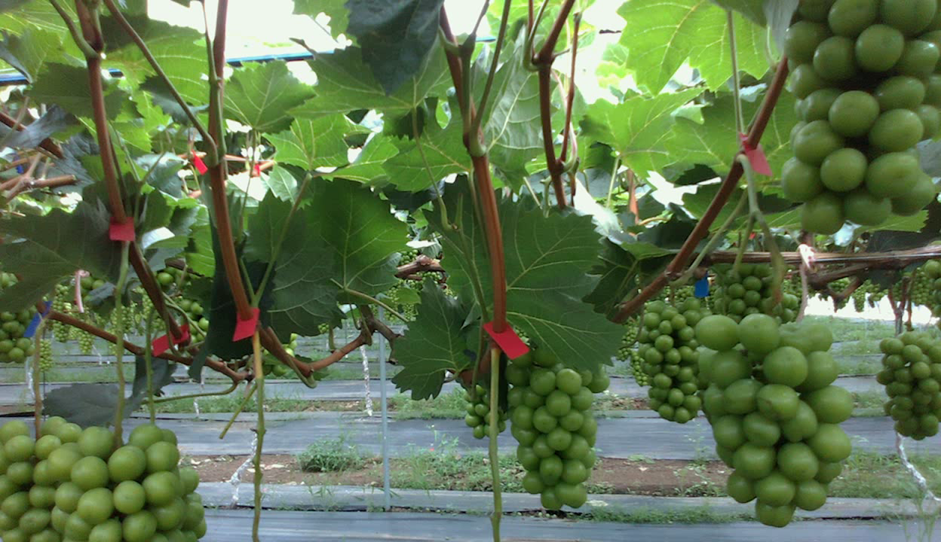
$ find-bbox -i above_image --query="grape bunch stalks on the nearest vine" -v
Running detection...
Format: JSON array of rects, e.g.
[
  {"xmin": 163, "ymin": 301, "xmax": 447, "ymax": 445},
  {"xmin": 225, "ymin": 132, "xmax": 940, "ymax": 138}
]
[
  {"xmin": 490, "ymin": 349, "xmax": 502, "ymax": 541},
  {"xmin": 112, "ymin": 241, "xmax": 130, "ymax": 450},
  {"xmin": 252, "ymin": 331, "xmax": 267, "ymax": 488},
  {"xmin": 738, "ymin": 153, "xmax": 787, "ymax": 317},
  {"xmin": 32, "ymin": 315, "xmax": 47, "ymax": 441}
]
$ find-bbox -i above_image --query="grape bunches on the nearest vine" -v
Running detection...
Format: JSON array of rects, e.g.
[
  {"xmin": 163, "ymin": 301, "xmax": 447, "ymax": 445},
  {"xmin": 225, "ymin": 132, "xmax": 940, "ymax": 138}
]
[
  {"xmin": 507, "ymin": 349, "xmax": 609, "ymax": 510},
  {"xmin": 780, "ymin": 1, "xmax": 939, "ymax": 235},
  {"xmin": 0, "ymin": 416, "xmax": 82, "ymax": 541},
  {"xmin": 696, "ymin": 314, "xmax": 853, "ymax": 528},
  {"xmin": 48, "ymin": 424, "xmax": 207, "ymax": 541}
]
